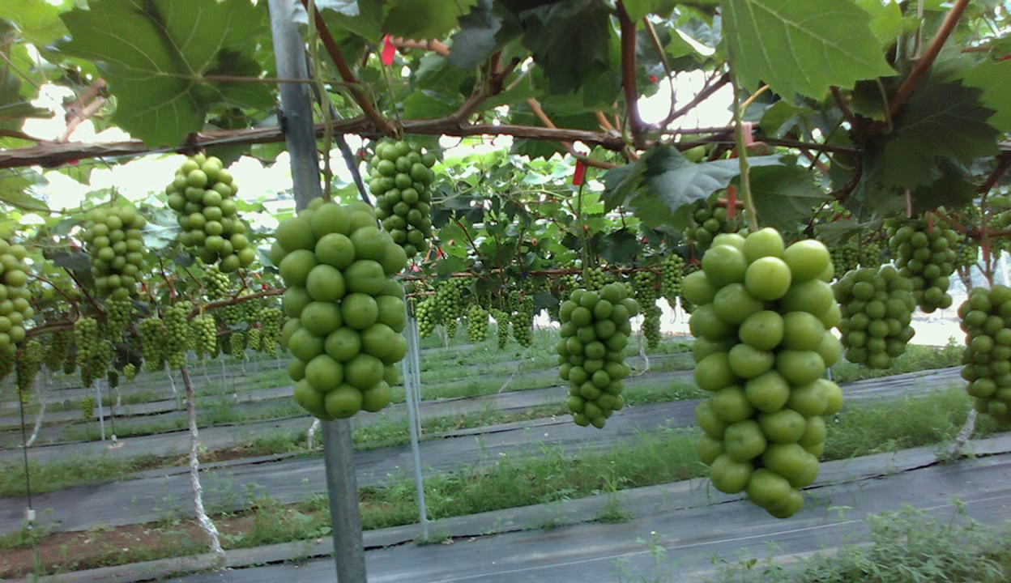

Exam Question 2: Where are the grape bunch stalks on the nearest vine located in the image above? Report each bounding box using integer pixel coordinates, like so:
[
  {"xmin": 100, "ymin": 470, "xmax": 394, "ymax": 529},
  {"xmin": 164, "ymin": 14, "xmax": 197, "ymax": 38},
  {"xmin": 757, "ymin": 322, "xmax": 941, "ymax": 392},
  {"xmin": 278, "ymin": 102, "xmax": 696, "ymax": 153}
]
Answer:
[
  {"xmin": 307, "ymin": 1, "xmax": 331, "ymax": 203},
  {"xmin": 726, "ymin": 42, "xmax": 758, "ymax": 234}
]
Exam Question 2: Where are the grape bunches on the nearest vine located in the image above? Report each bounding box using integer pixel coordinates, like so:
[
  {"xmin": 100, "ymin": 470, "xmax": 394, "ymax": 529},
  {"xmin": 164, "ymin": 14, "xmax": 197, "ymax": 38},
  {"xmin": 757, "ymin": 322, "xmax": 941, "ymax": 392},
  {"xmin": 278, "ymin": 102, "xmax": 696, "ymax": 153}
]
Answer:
[
  {"xmin": 681, "ymin": 226, "xmax": 842, "ymax": 519},
  {"xmin": 271, "ymin": 197, "xmax": 407, "ymax": 421}
]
